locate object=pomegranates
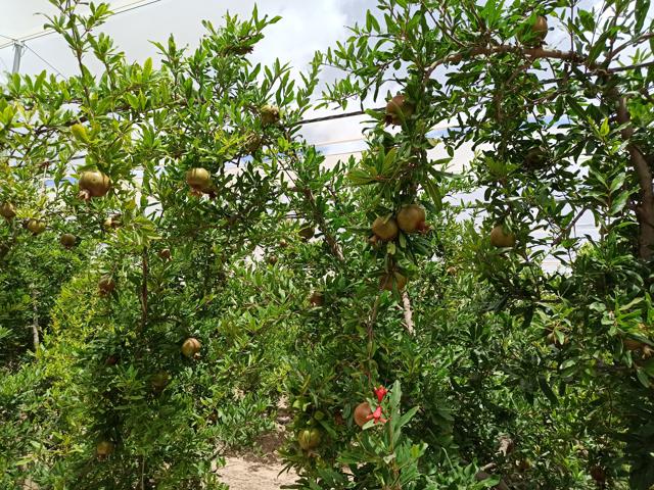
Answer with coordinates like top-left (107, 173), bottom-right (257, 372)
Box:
top-left (298, 227), bottom-right (316, 243)
top-left (396, 203), bottom-right (429, 235)
top-left (383, 94), bottom-right (415, 128)
top-left (181, 337), bottom-right (202, 360)
top-left (532, 15), bottom-right (549, 48)
top-left (489, 225), bottom-right (515, 246)
top-left (623, 340), bottom-right (654, 360)
top-left (160, 250), bottom-right (171, 258)
top-left (0, 202), bottom-right (17, 219)
top-left (151, 372), bottom-right (169, 391)
top-left (297, 428), bottom-right (322, 458)
top-left (95, 440), bottom-right (114, 460)
top-left (309, 292), bottom-right (323, 305)
top-left (97, 277), bottom-right (115, 295)
top-left (379, 272), bottom-right (408, 291)
top-left (367, 217), bottom-right (400, 245)
top-left (261, 105), bottom-right (280, 125)
top-left (354, 401), bottom-right (375, 428)
top-left (185, 166), bottom-right (211, 197)
top-left (60, 234), bottom-right (76, 249)
top-left (27, 220), bottom-right (45, 233)
top-left (76, 169), bottom-right (111, 201)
